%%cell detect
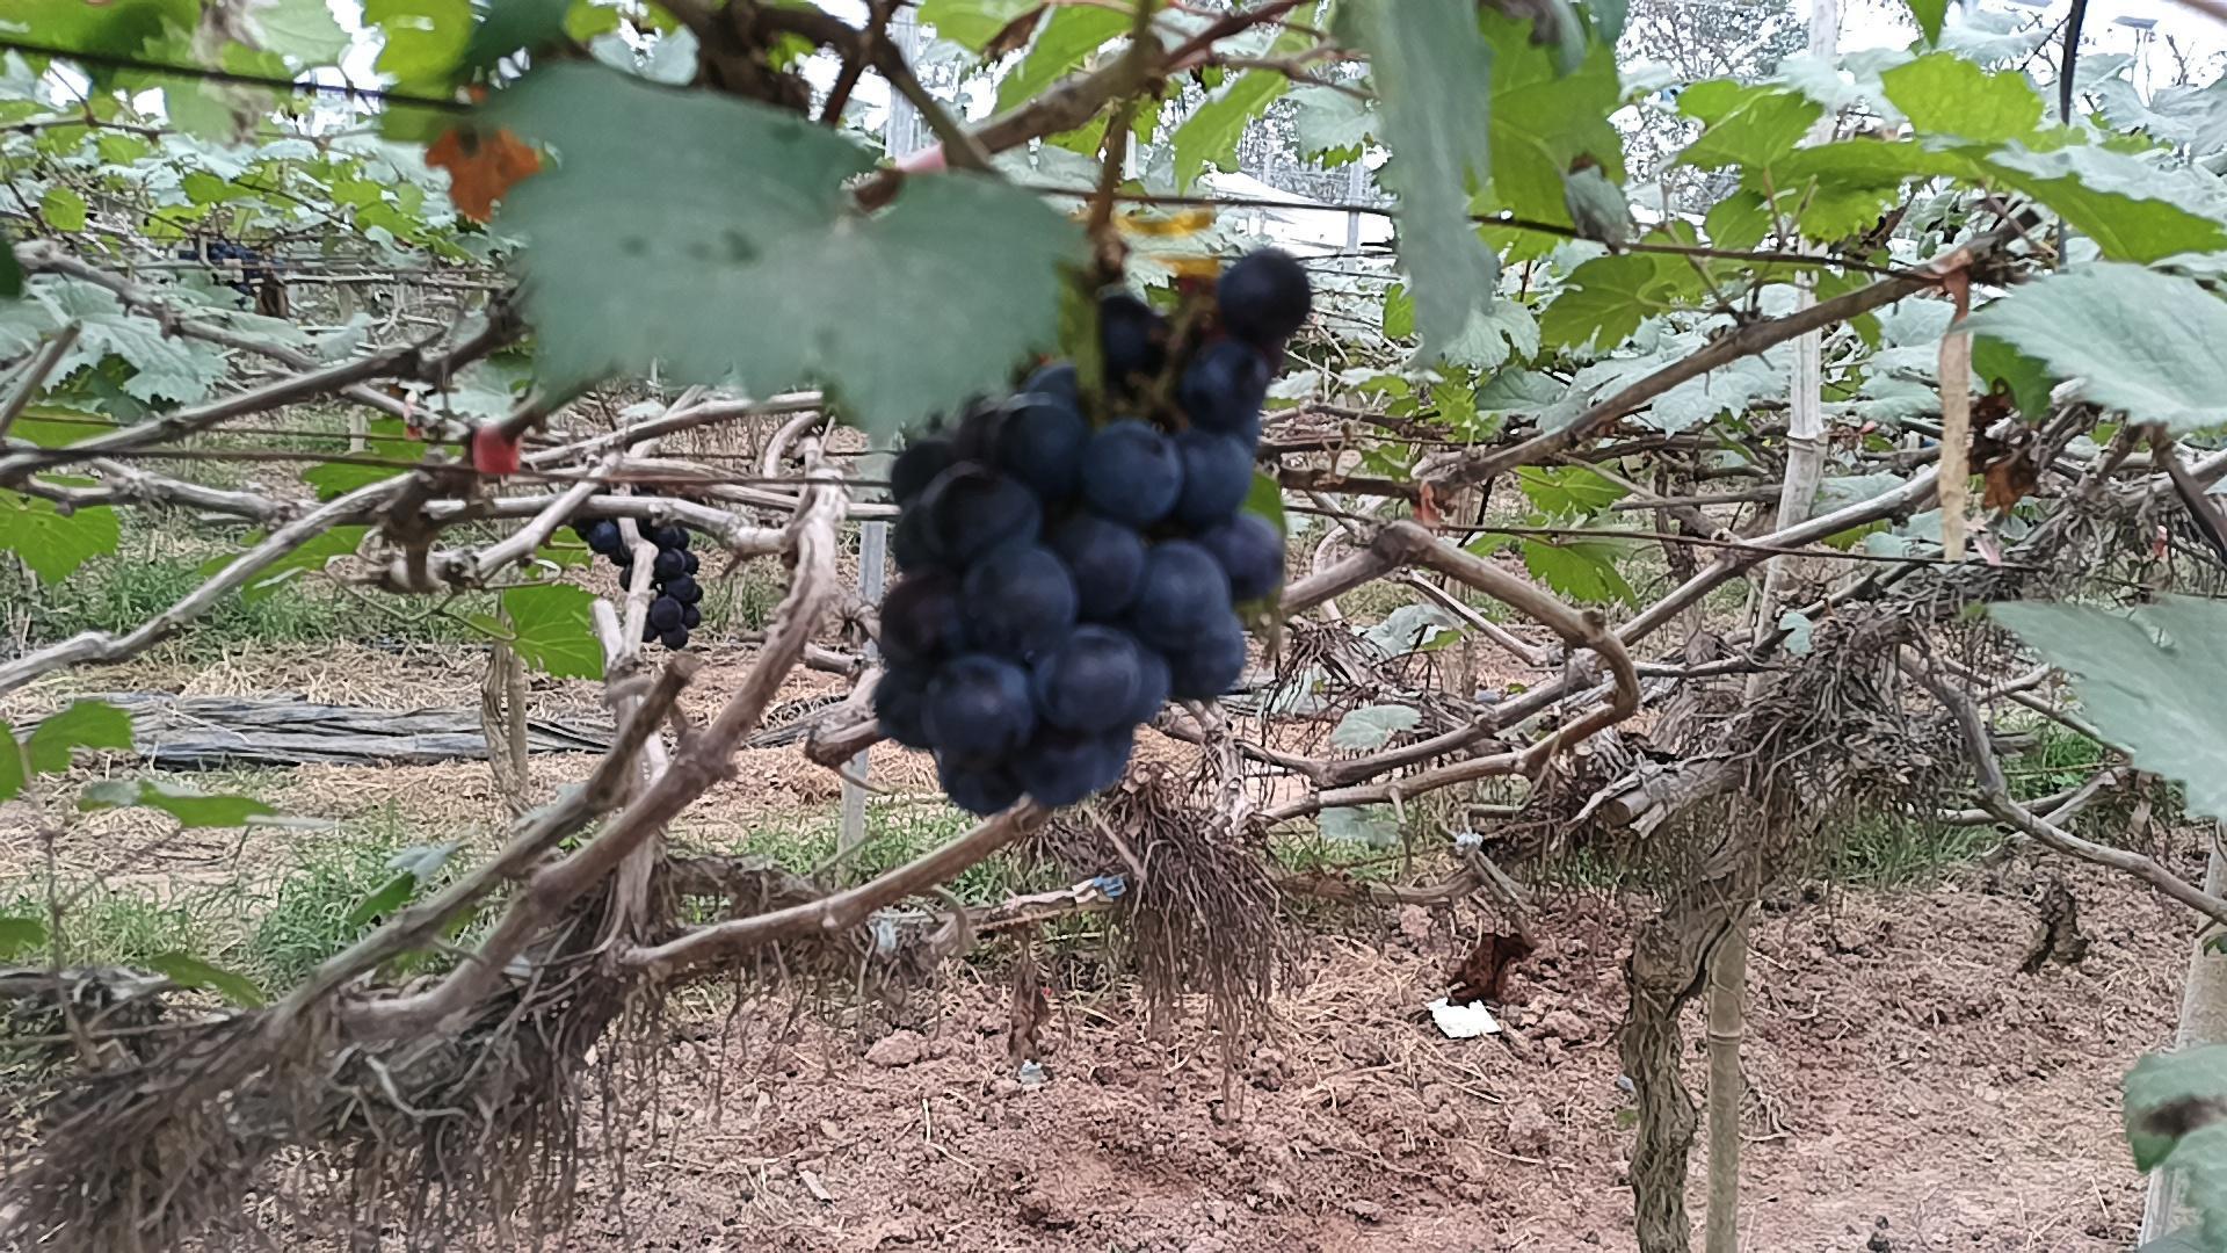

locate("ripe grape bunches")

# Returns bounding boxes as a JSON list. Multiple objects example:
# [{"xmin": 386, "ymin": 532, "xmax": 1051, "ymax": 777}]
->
[
  {"xmin": 570, "ymin": 509, "xmax": 702, "ymax": 650},
  {"xmin": 875, "ymin": 248, "xmax": 1310, "ymax": 813}
]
